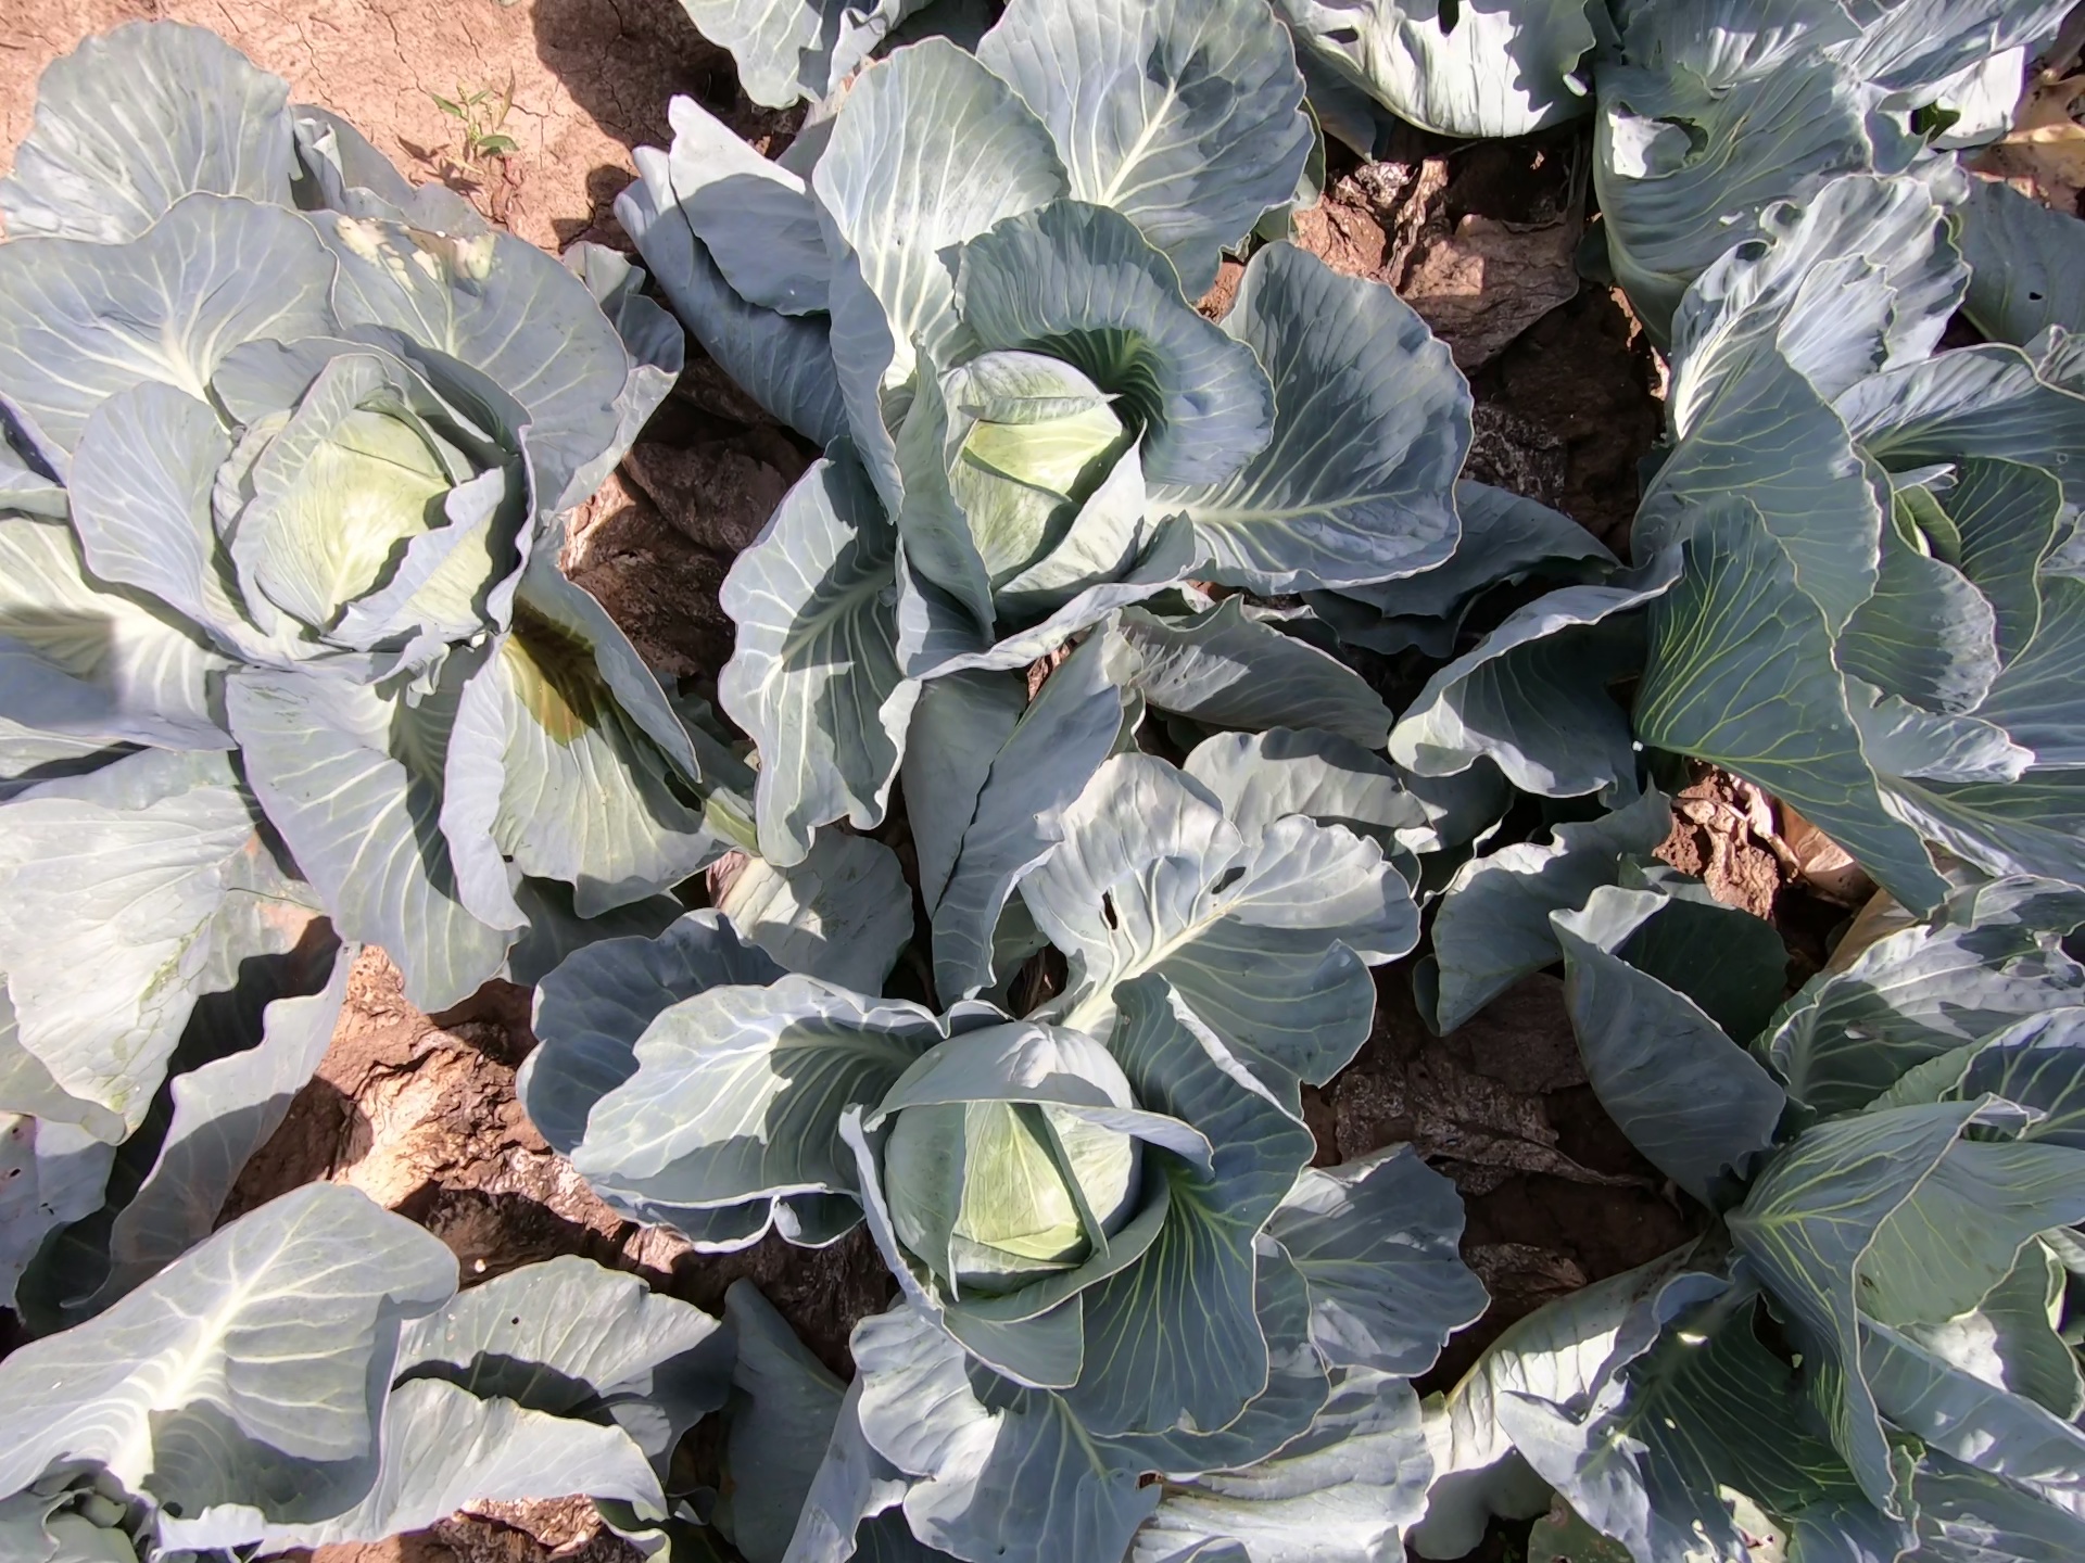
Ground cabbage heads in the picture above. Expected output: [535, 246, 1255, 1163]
[882, 1026, 1151, 1298]
[1871, 1189, 2069, 1369]
[207, 399, 517, 647]
[888, 351, 1148, 618]
[1727, 491, 1933, 684]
